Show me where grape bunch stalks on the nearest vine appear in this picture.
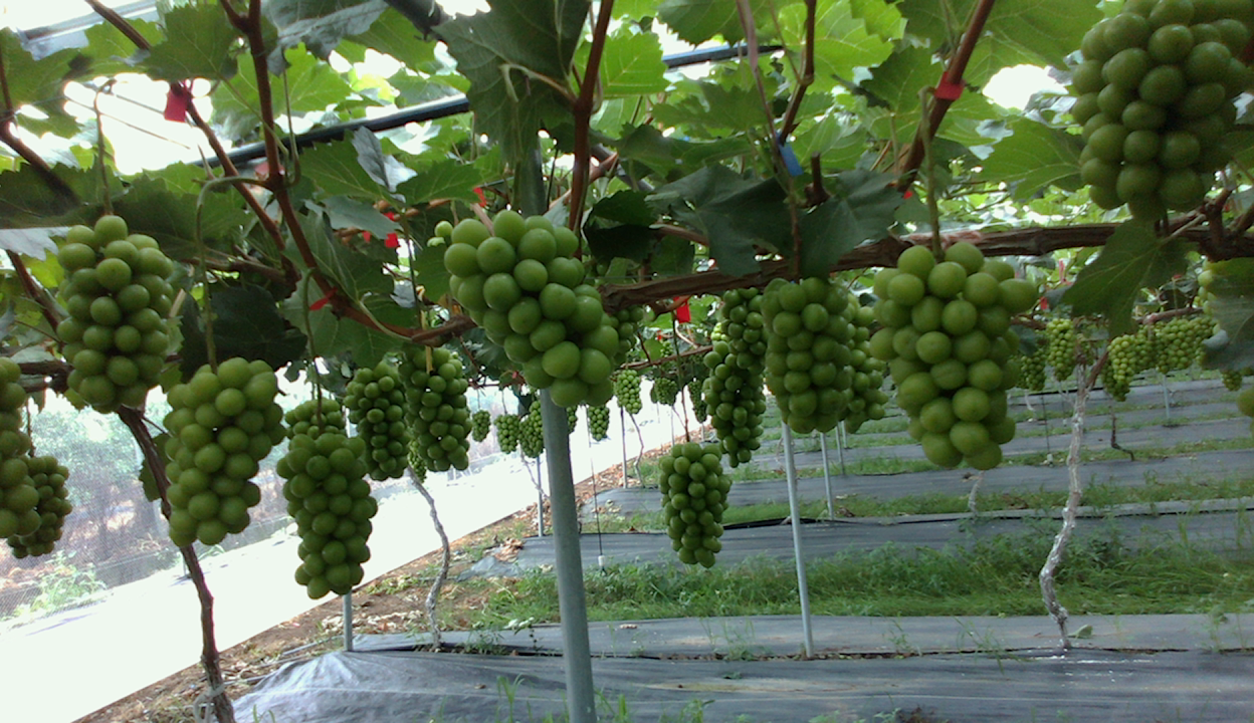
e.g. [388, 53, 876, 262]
[501, 64, 577, 211]
[301, 268, 345, 436]
[195, 177, 272, 373]
[775, 151, 802, 282]
[93, 77, 115, 214]
[918, 85, 945, 261]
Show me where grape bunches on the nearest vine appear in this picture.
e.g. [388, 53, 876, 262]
[1071, 1, 1253, 222]
[444, 209, 618, 406]
[870, 242, 1037, 468]
[164, 358, 286, 548]
[275, 434, 378, 599]
[760, 277, 852, 432]
[56, 215, 174, 414]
